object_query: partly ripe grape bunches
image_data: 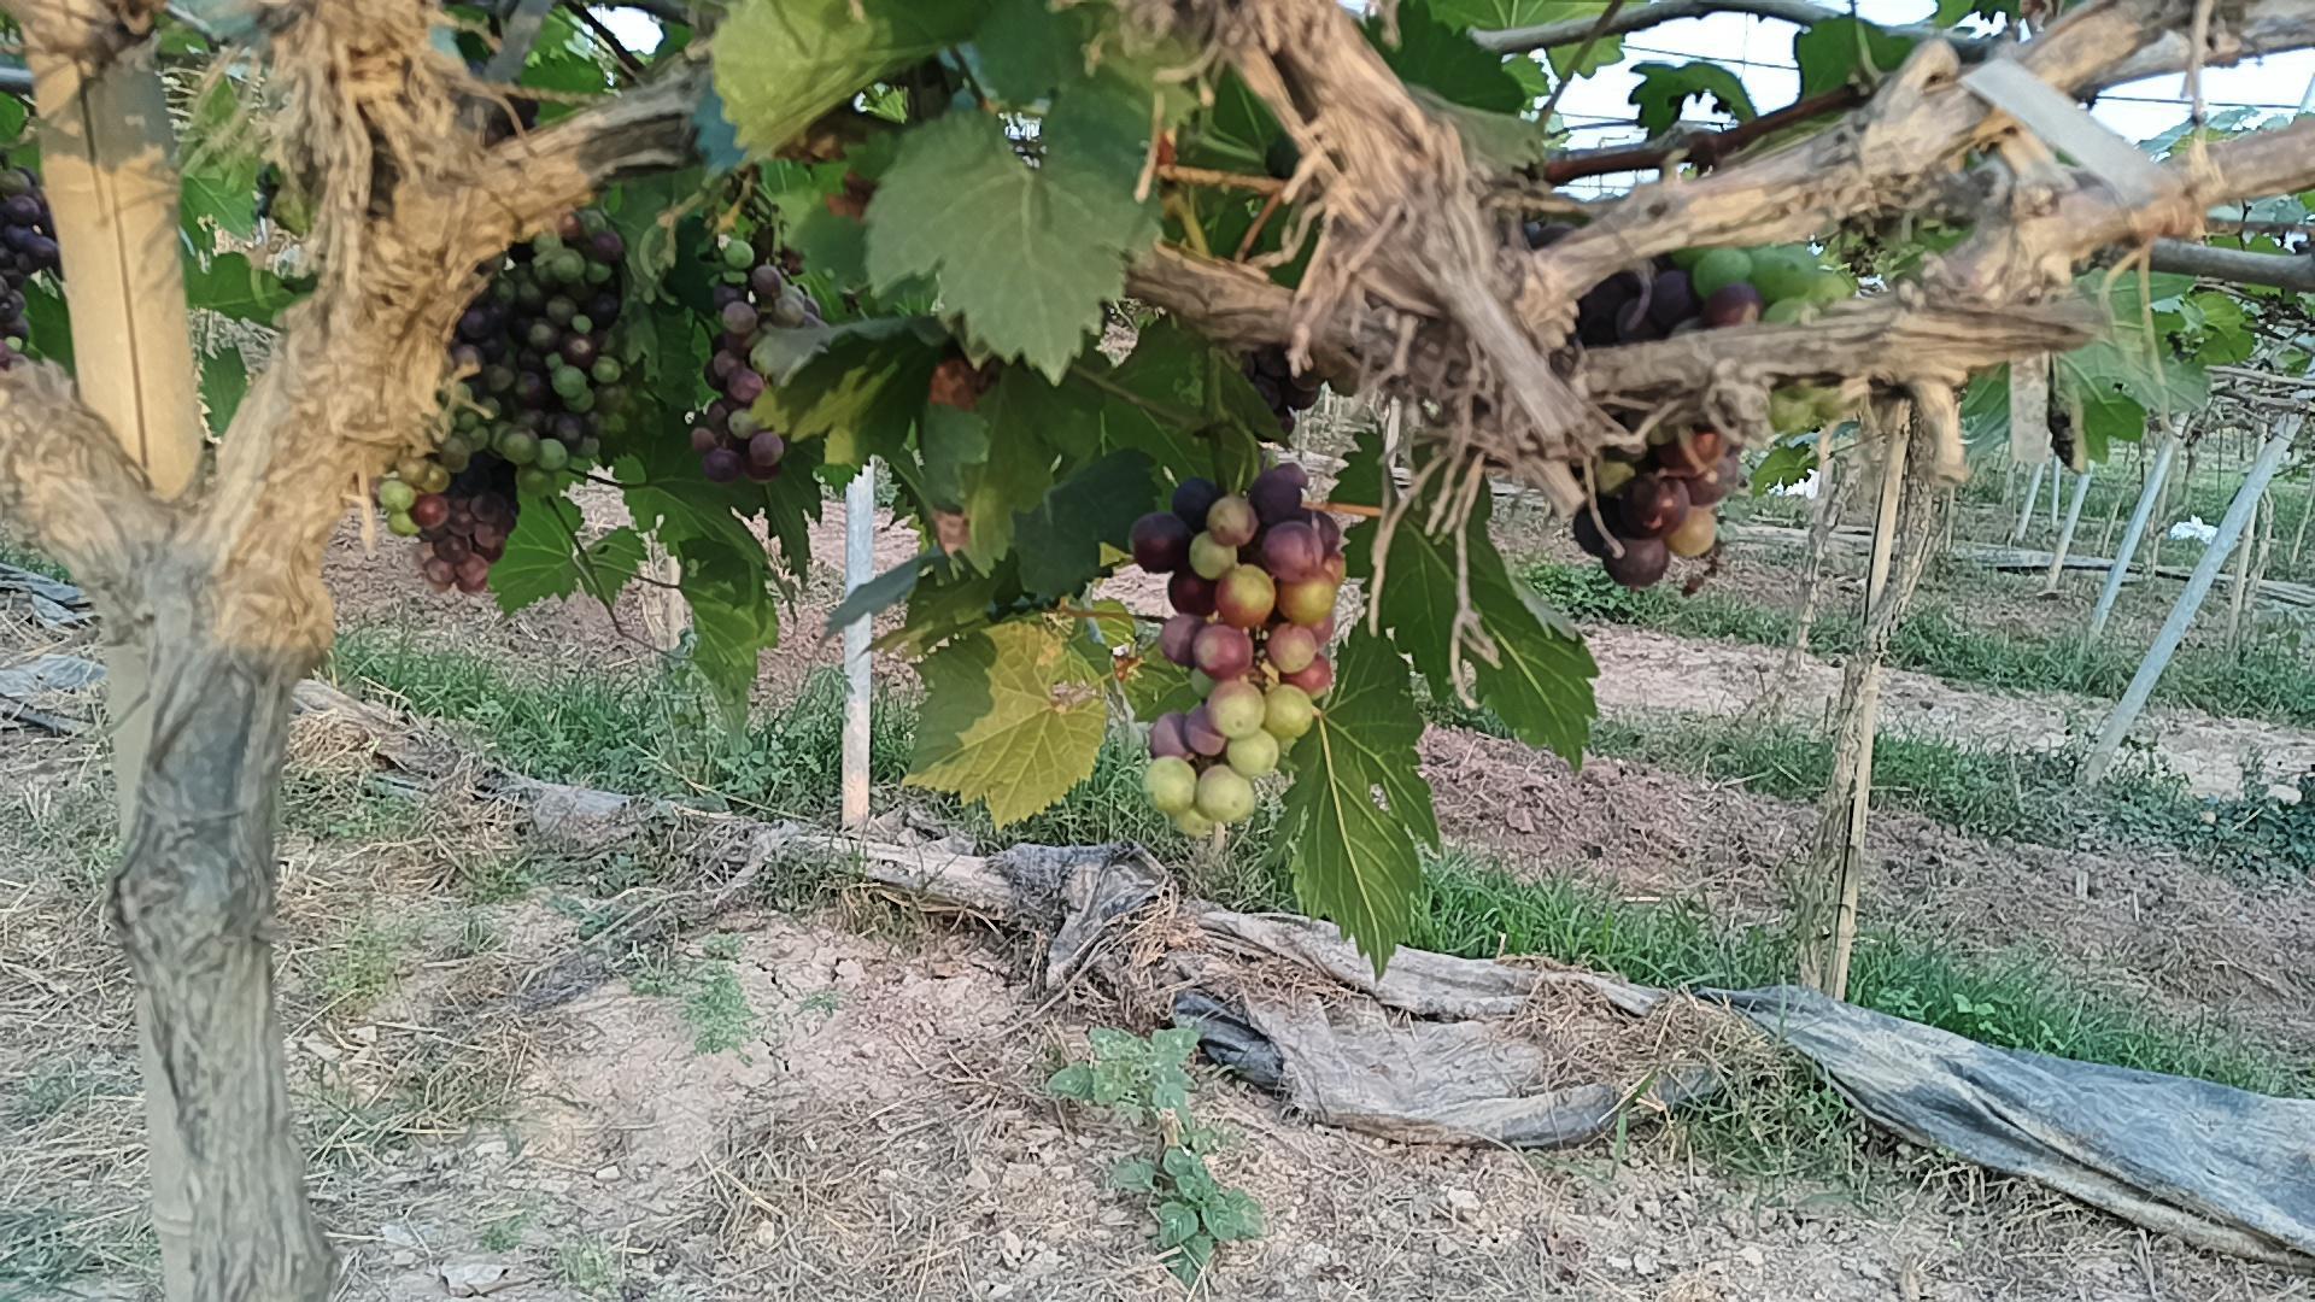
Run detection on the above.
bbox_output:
[1241,345,1361,433]
[1133,463,1344,833]
[375,205,633,534]
[685,240,831,485]
[1567,237,1856,592]
[0,154,59,365]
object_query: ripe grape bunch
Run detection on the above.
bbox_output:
[411,447,522,596]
